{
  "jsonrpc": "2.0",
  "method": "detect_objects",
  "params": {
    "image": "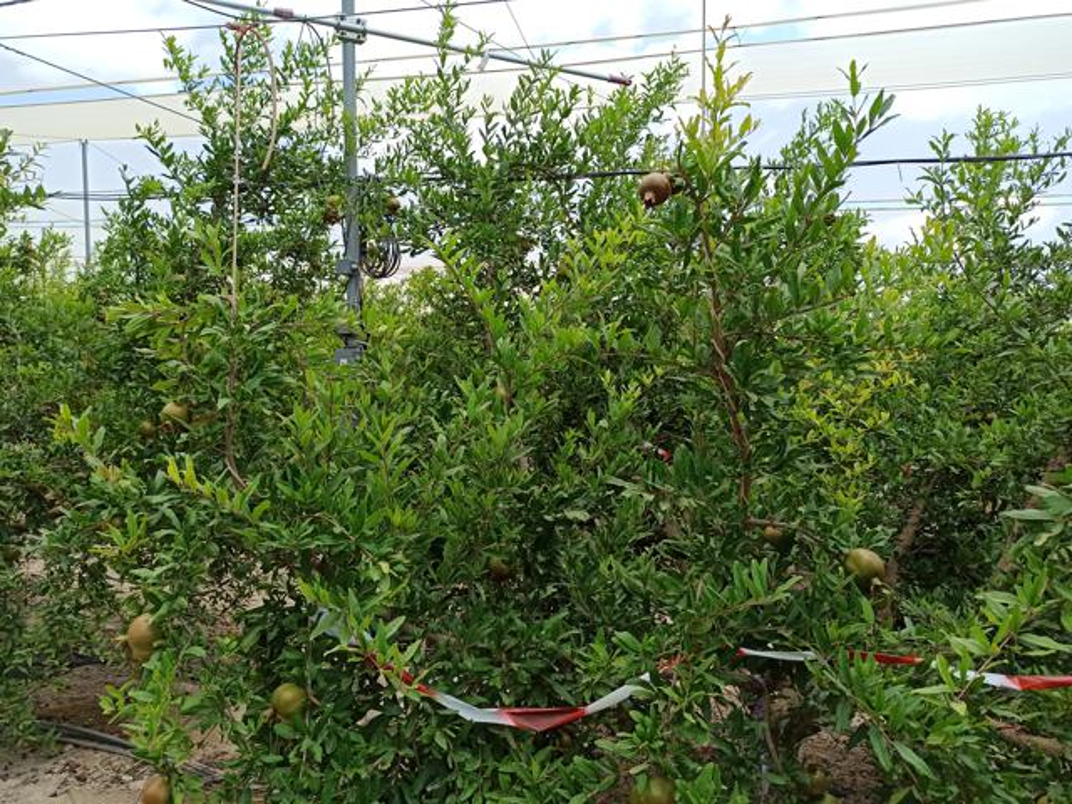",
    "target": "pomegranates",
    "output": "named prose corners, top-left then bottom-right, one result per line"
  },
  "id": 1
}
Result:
top-left (159, 402), bottom-right (189, 430)
top-left (109, 613), bottom-right (162, 662)
top-left (261, 683), bottom-right (307, 722)
top-left (387, 198), bottom-right (400, 211)
top-left (327, 194), bottom-right (338, 213)
top-left (762, 526), bottom-right (779, 541)
top-left (630, 776), bottom-right (673, 804)
top-left (843, 546), bottom-right (891, 595)
top-left (807, 764), bottom-right (832, 794)
top-left (325, 209), bottom-right (340, 226)
top-left (486, 556), bottom-right (513, 575)
top-left (139, 774), bottom-right (169, 804)
top-left (636, 173), bottom-right (672, 208)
